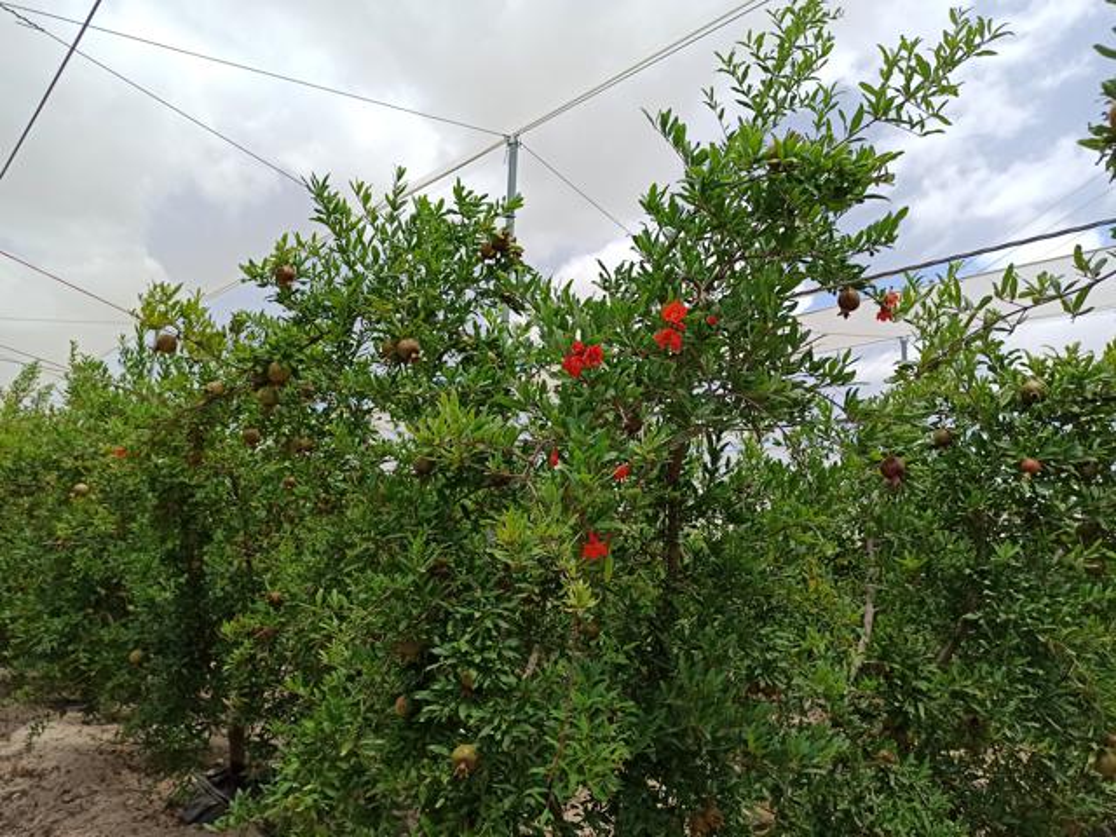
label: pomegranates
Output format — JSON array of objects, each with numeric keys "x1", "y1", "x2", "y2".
[
  {"x1": 396, "y1": 338, "x2": 420, "y2": 364},
  {"x1": 265, "y1": 361, "x2": 289, "y2": 382},
  {"x1": 1018, "y1": 457, "x2": 1041, "y2": 476},
  {"x1": 201, "y1": 380, "x2": 225, "y2": 398},
  {"x1": 1022, "y1": 378, "x2": 1048, "y2": 405},
  {"x1": 837, "y1": 288, "x2": 861, "y2": 319},
  {"x1": 274, "y1": 265, "x2": 296, "y2": 284},
  {"x1": 396, "y1": 640, "x2": 420, "y2": 656},
  {"x1": 452, "y1": 743, "x2": 480, "y2": 779},
  {"x1": 481, "y1": 242, "x2": 497, "y2": 260},
  {"x1": 689, "y1": 814, "x2": 711, "y2": 837},
  {"x1": 933, "y1": 427, "x2": 952, "y2": 448},
  {"x1": 460, "y1": 671, "x2": 473, "y2": 697},
  {"x1": 492, "y1": 230, "x2": 511, "y2": 251},
  {"x1": 1104, "y1": 732, "x2": 1116, "y2": 748},
  {"x1": 394, "y1": 696, "x2": 408, "y2": 717},
  {"x1": 241, "y1": 427, "x2": 263, "y2": 445},
  {"x1": 624, "y1": 417, "x2": 642, "y2": 434},
  {"x1": 378, "y1": 340, "x2": 398, "y2": 361},
  {"x1": 265, "y1": 591, "x2": 284, "y2": 609},
  {"x1": 1093, "y1": 752, "x2": 1116, "y2": 783},
  {"x1": 126, "y1": 649, "x2": 145, "y2": 666},
  {"x1": 68, "y1": 481, "x2": 91, "y2": 500},
  {"x1": 256, "y1": 387, "x2": 279, "y2": 406},
  {"x1": 703, "y1": 806, "x2": 727, "y2": 830},
  {"x1": 879, "y1": 455, "x2": 905, "y2": 488},
  {"x1": 150, "y1": 333, "x2": 178, "y2": 354},
  {"x1": 413, "y1": 457, "x2": 436, "y2": 478}
]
